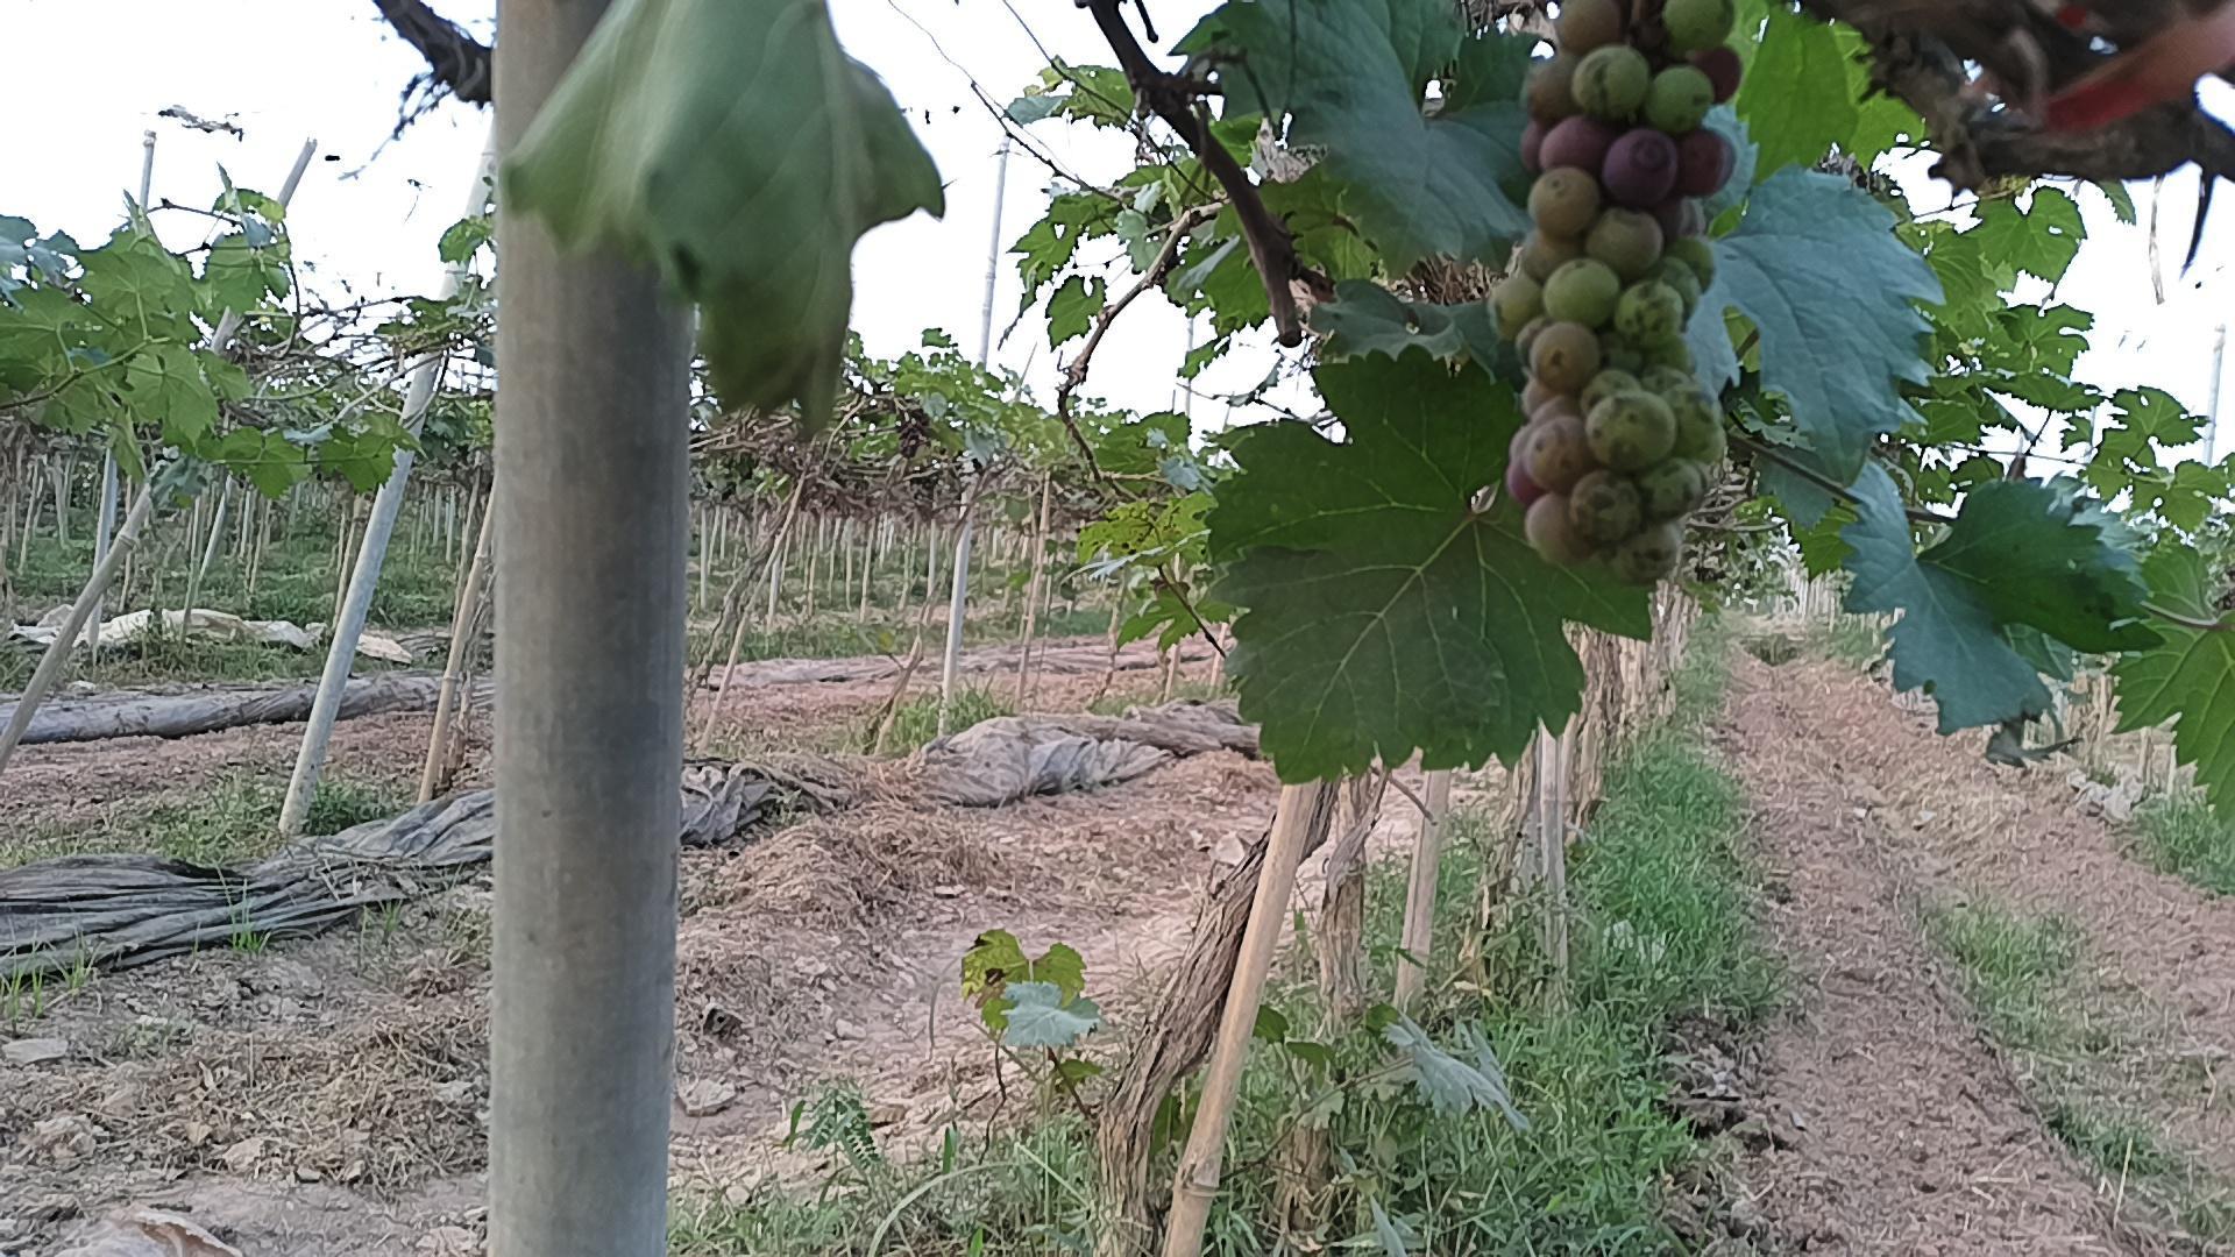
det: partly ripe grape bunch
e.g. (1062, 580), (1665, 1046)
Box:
(1489, 0), (1741, 582)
